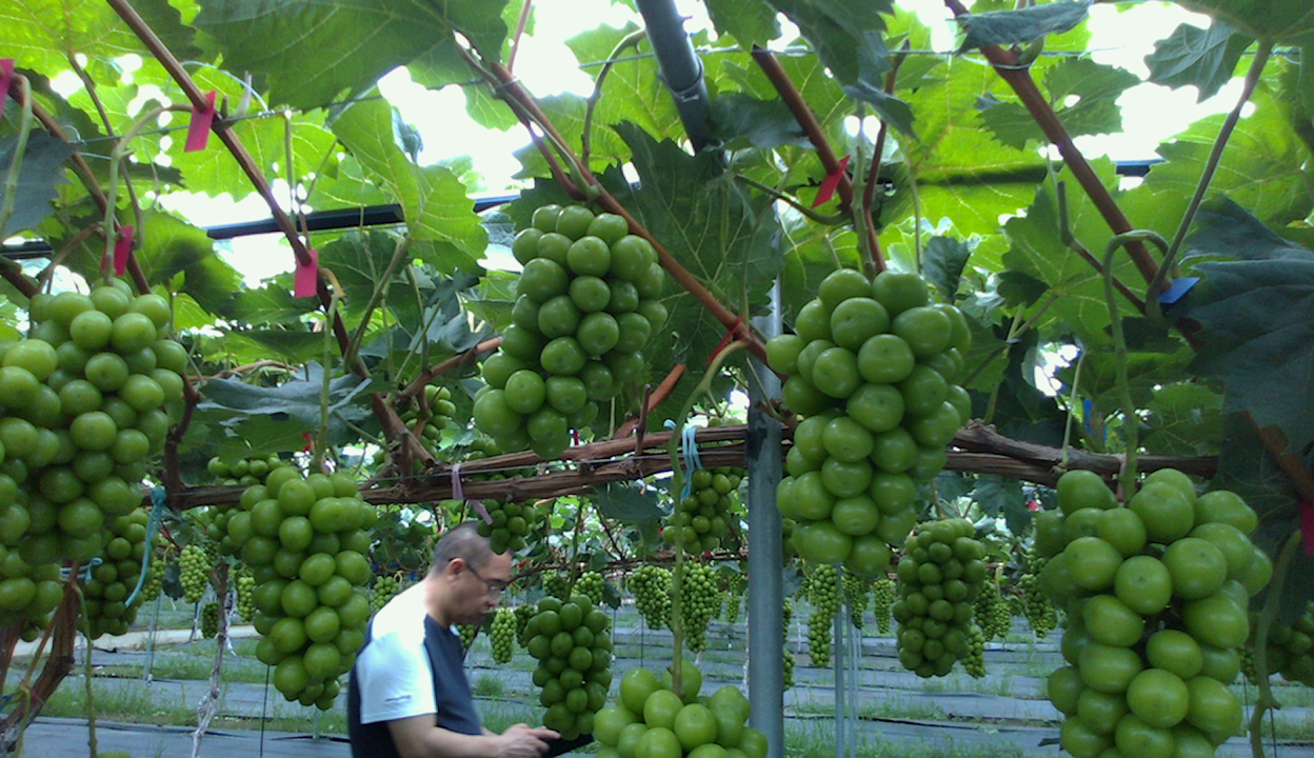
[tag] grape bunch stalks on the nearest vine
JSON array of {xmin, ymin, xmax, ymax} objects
[
  {"xmin": 1100, "ymin": 228, "xmax": 1169, "ymax": 506},
  {"xmin": 310, "ymin": 267, "xmax": 345, "ymax": 476},
  {"xmin": 665, "ymin": 340, "xmax": 744, "ymax": 697},
  {"xmin": 853, "ymin": 99, "xmax": 875, "ymax": 283},
  {"xmin": 98, "ymin": 102, "xmax": 195, "ymax": 286}
]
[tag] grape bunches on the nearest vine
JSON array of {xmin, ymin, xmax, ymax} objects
[
  {"xmin": 593, "ymin": 660, "xmax": 768, "ymax": 757},
  {"xmin": 766, "ymin": 268, "xmax": 972, "ymax": 577},
  {"xmin": 472, "ymin": 203, "xmax": 669, "ymax": 461},
  {"xmin": 1034, "ymin": 468, "xmax": 1275, "ymax": 757},
  {"xmin": 226, "ymin": 465, "xmax": 376, "ymax": 711},
  {"xmin": 16, "ymin": 277, "xmax": 190, "ymax": 566}
]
